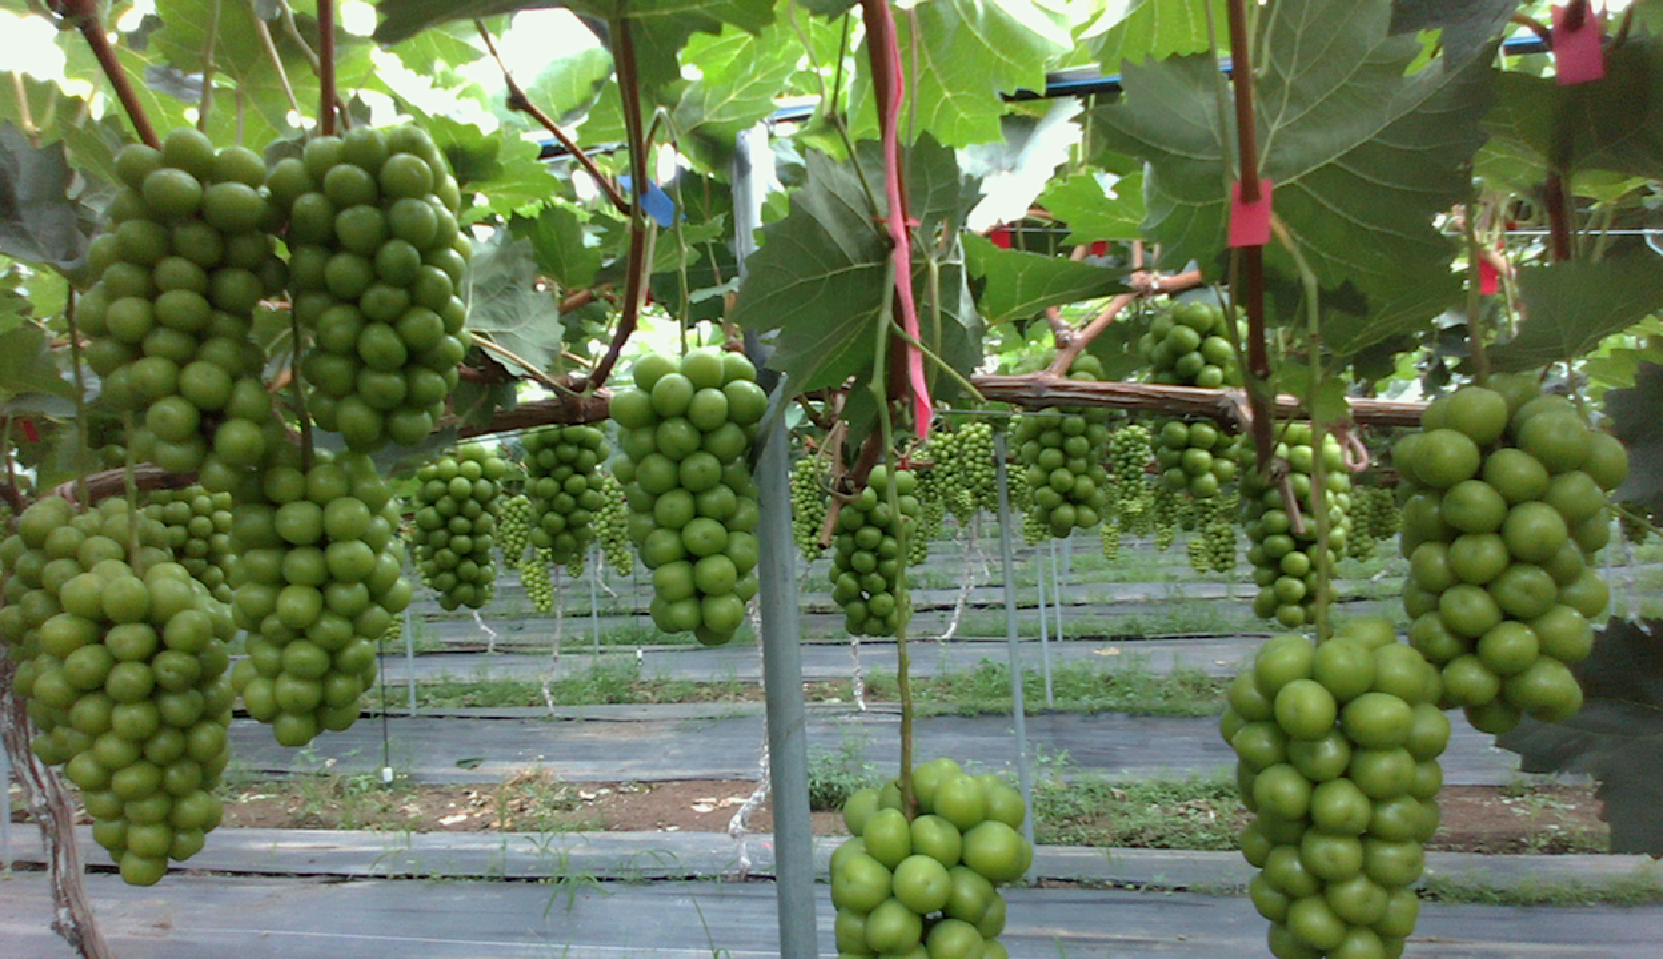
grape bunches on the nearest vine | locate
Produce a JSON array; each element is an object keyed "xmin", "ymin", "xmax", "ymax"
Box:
[
  {"xmin": 264, "ymin": 125, "xmax": 472, "ymax": 454},
  {"xmin": 609, "ymin": 350, "xmax": 768, "ymax": 643},
  {"xmin": 1219, "ymin": 614, "xmax": 1451, "ymax": 958},
  {"xmin": 72, "ymin": 127, "xmax": 289, "ymax": 493},
  {"xmin": 829, "ymin": 758, "xmax": 1034, "ymax": 958},
  {"xmin": 1392, "ymin": 372, "xmax": 1627, "ymax": 737},
  {"xmin": 35, "ymin": 559, "xmax": 236, "ymax": 883},
  {"xmin": 1, "ymin": 494, "xmax": 131, "ymax": 766},
  {"xmin": 229, "ymin": 440, "xmax": 413, "ymax": 746}
]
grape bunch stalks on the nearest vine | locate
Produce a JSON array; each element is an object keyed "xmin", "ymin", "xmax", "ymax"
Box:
[
  {"xmin": 290, "ymin": 290, "xmax": 314, "ymax": 474},
  {"xmin": 1270, "ymin": 213, "xmax": 1330, "ymax": 645},
  {"xmin": 1463, "ymin": 157, "xmax": 1490, "ymax": 388},
  {"xmin": 197, "ymin": 1, "xmax": 224, "ymax": 133},
  {"xmin": 121, "ymin": 410, "xmax": 141, "ymax": 578},
  {"xmin": 63, "ymin": 281, "xmax": 87, "ymax": 514},
  {"xmin": 869, "ymin": 249, "xmax": 918, "ymax": 823},
  {"xmin": 642, "ymin": 107, "xmax": 690, "ymax": 360}
]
